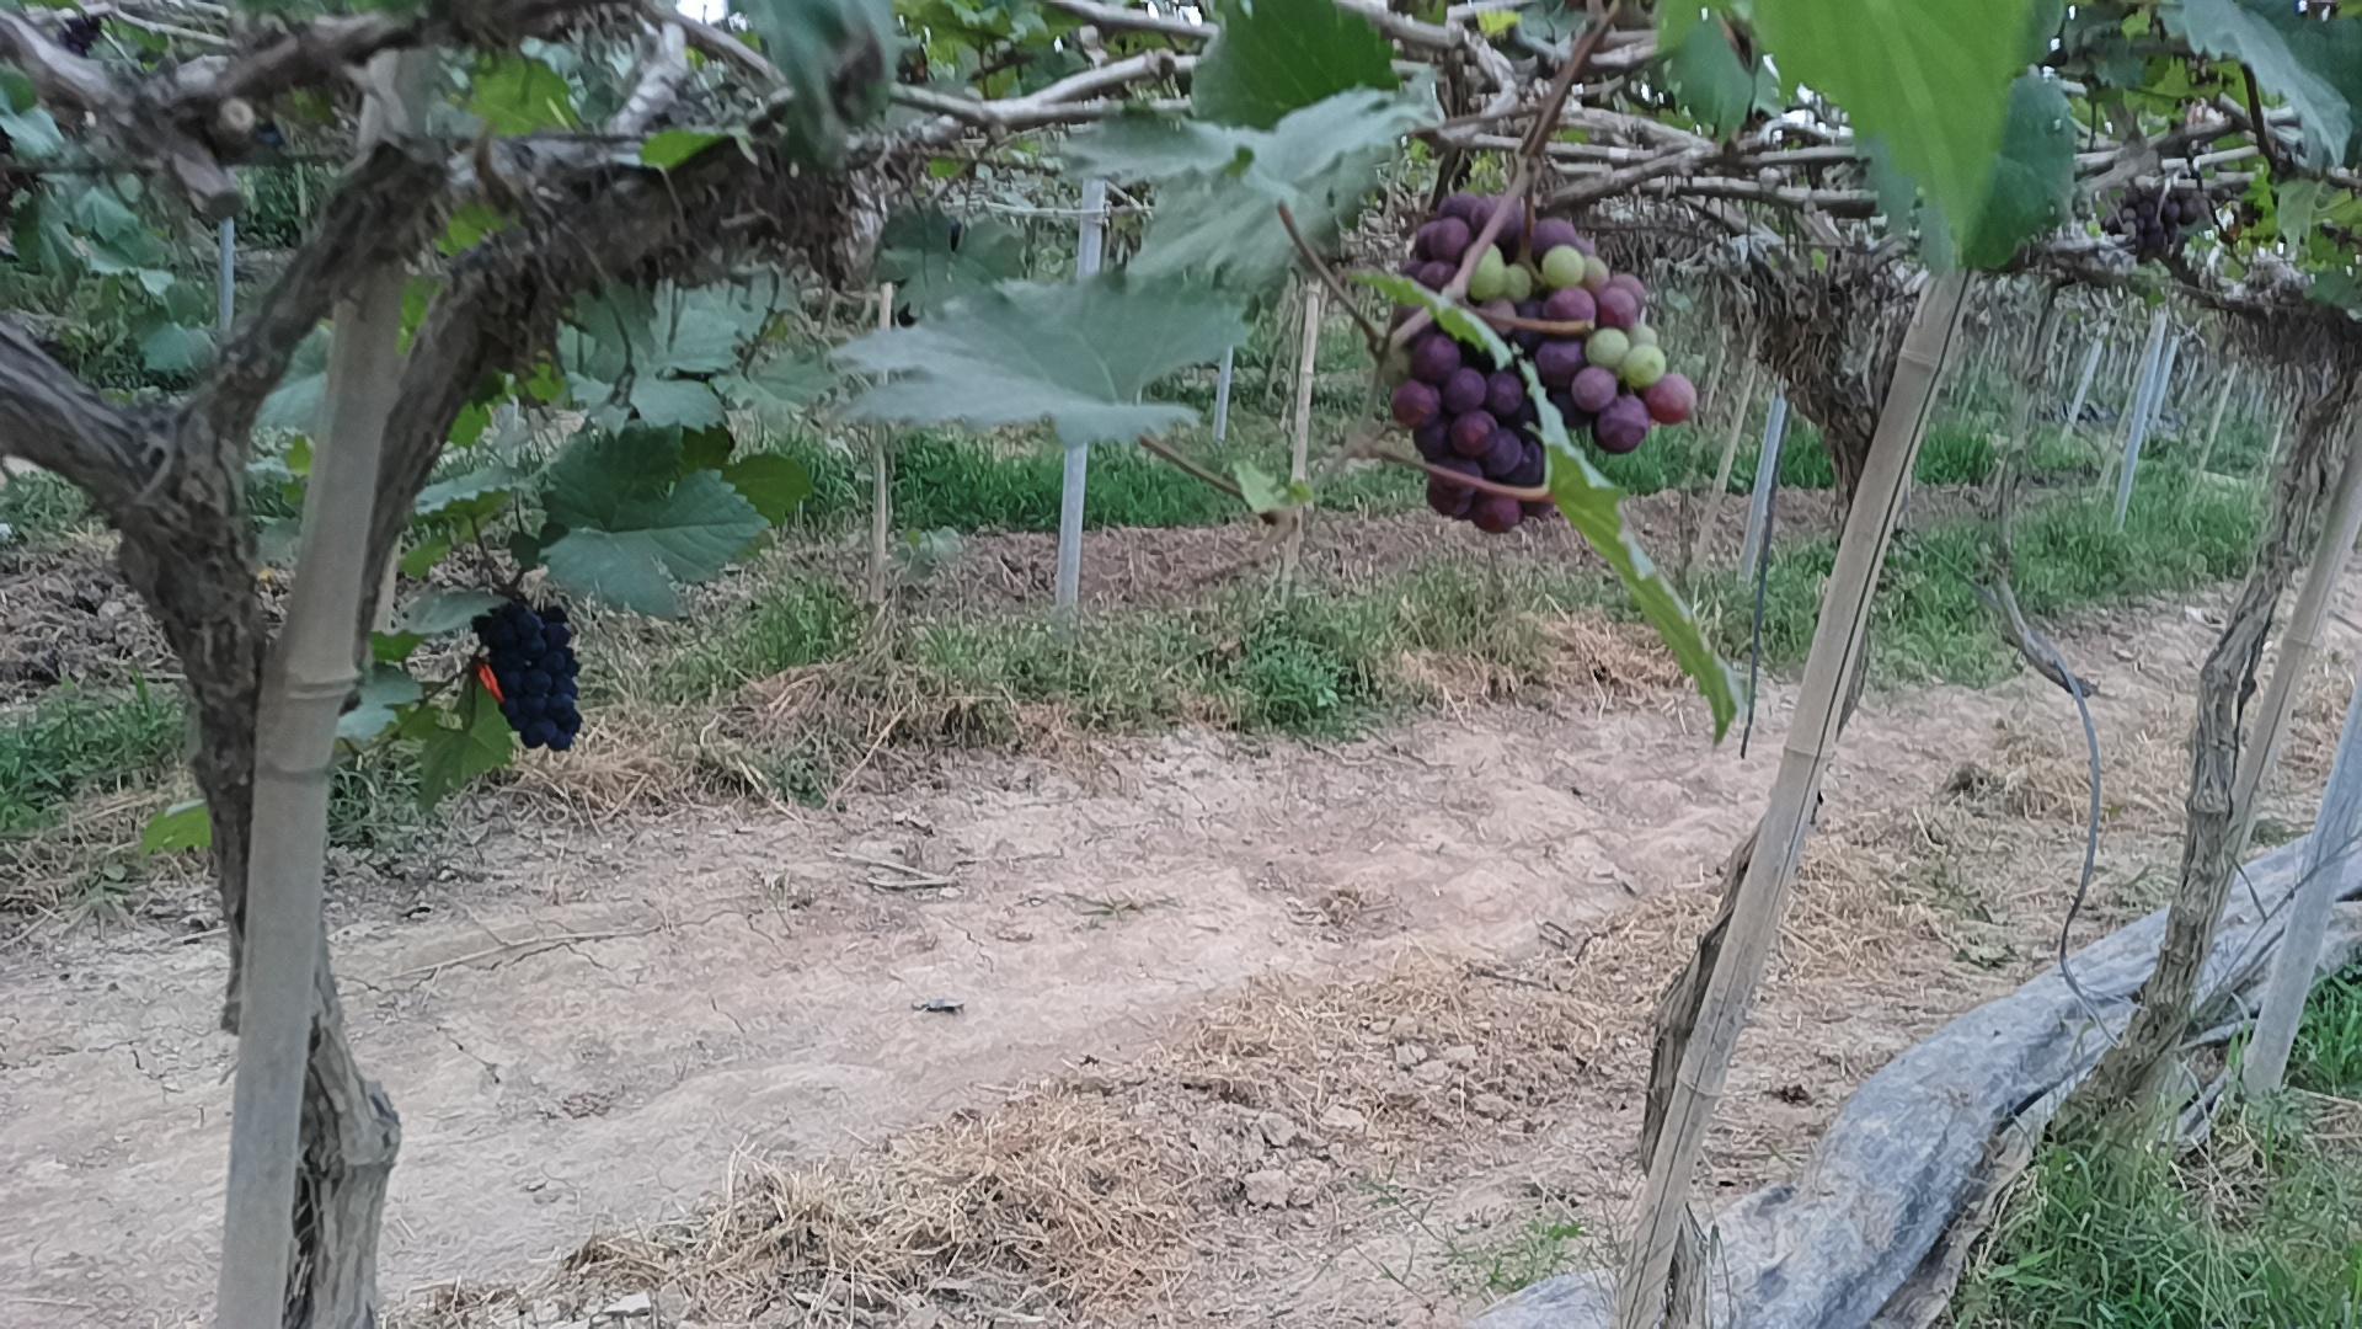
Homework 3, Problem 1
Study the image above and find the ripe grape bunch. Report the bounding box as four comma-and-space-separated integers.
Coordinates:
471, 597, 582, 749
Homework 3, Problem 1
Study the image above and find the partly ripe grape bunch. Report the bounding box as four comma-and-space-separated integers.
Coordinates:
1385, 192, 1693, 534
